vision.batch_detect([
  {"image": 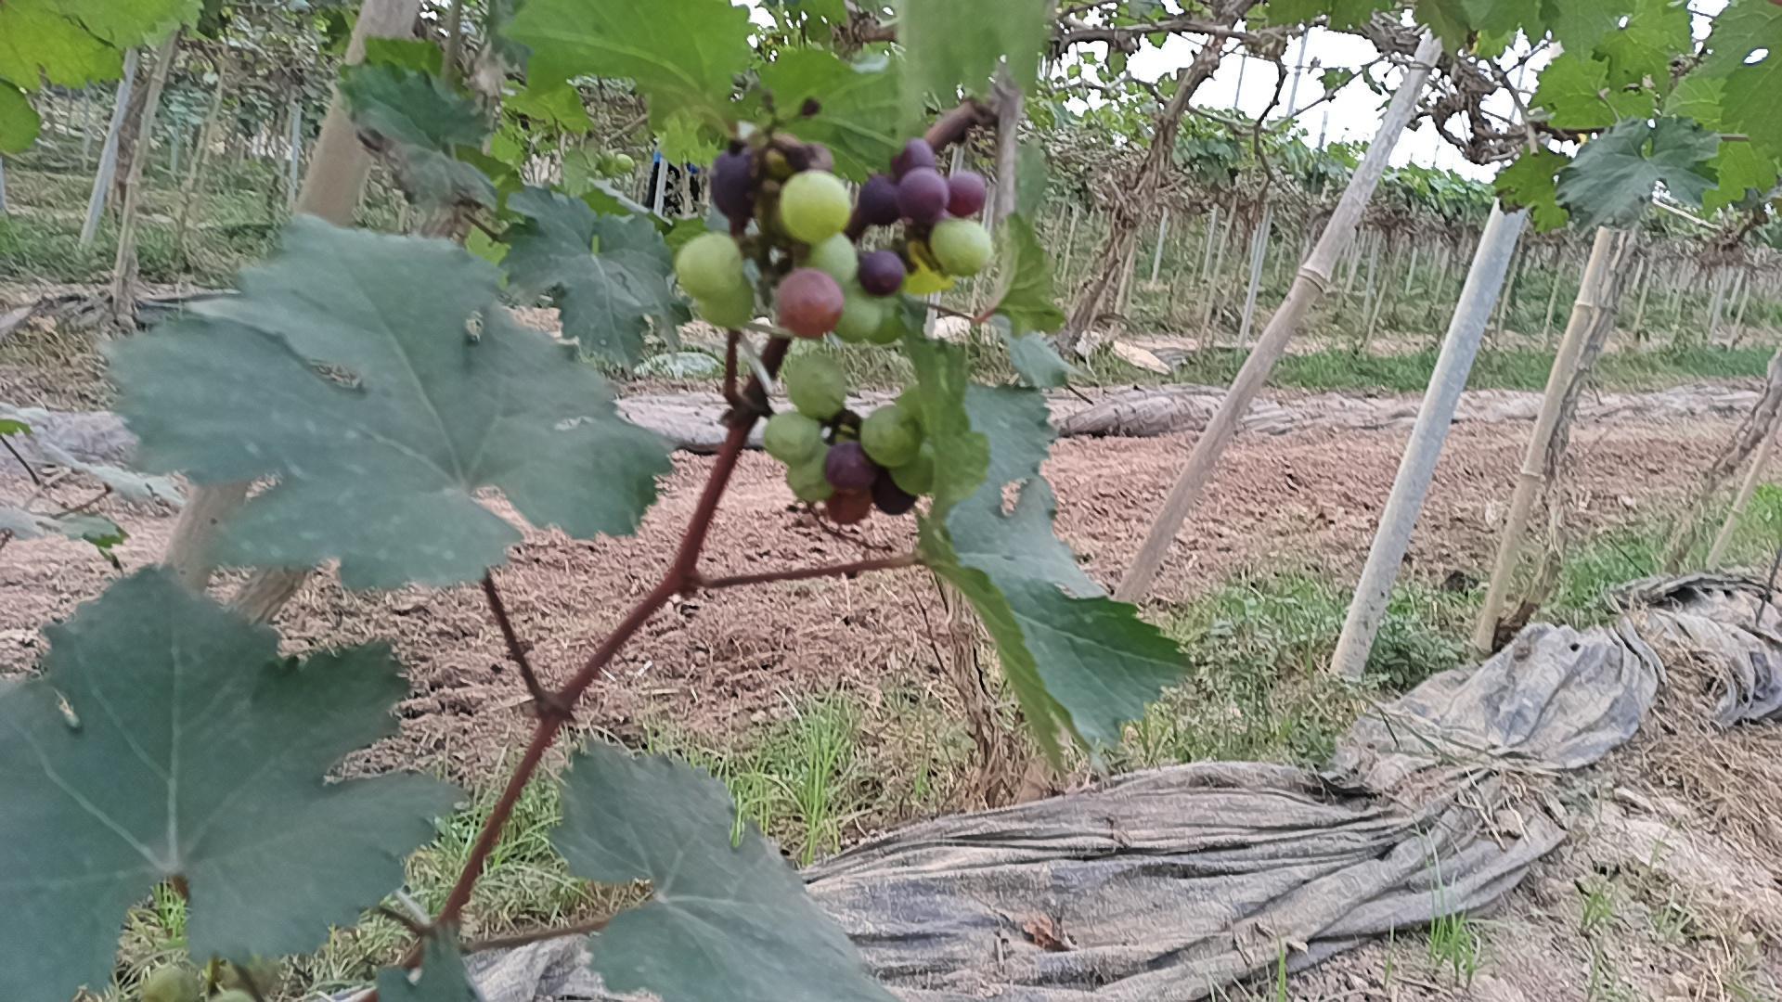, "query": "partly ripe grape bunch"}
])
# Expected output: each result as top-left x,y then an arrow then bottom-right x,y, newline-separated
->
675,100 -> 994,524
